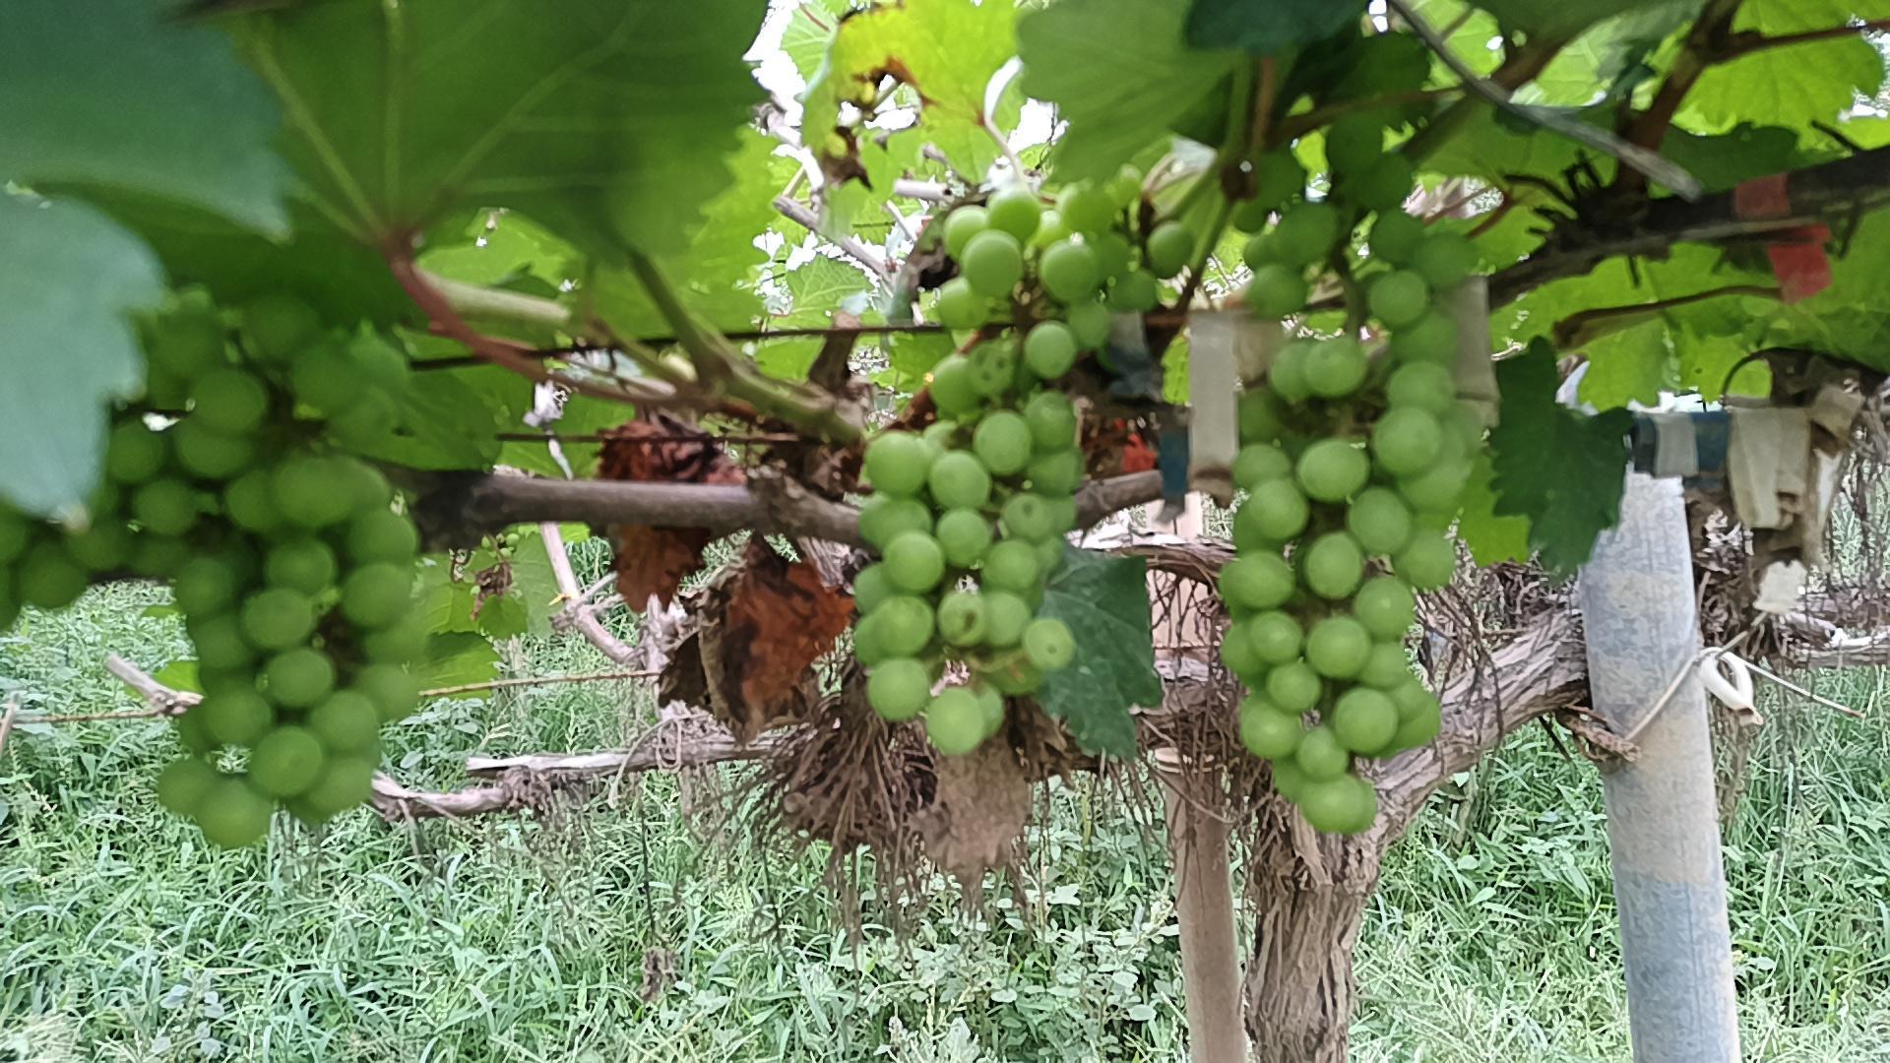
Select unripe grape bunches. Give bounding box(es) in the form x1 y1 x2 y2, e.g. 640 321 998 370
0 297 428 846
1222 116 1479 833
854 167 1192 754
